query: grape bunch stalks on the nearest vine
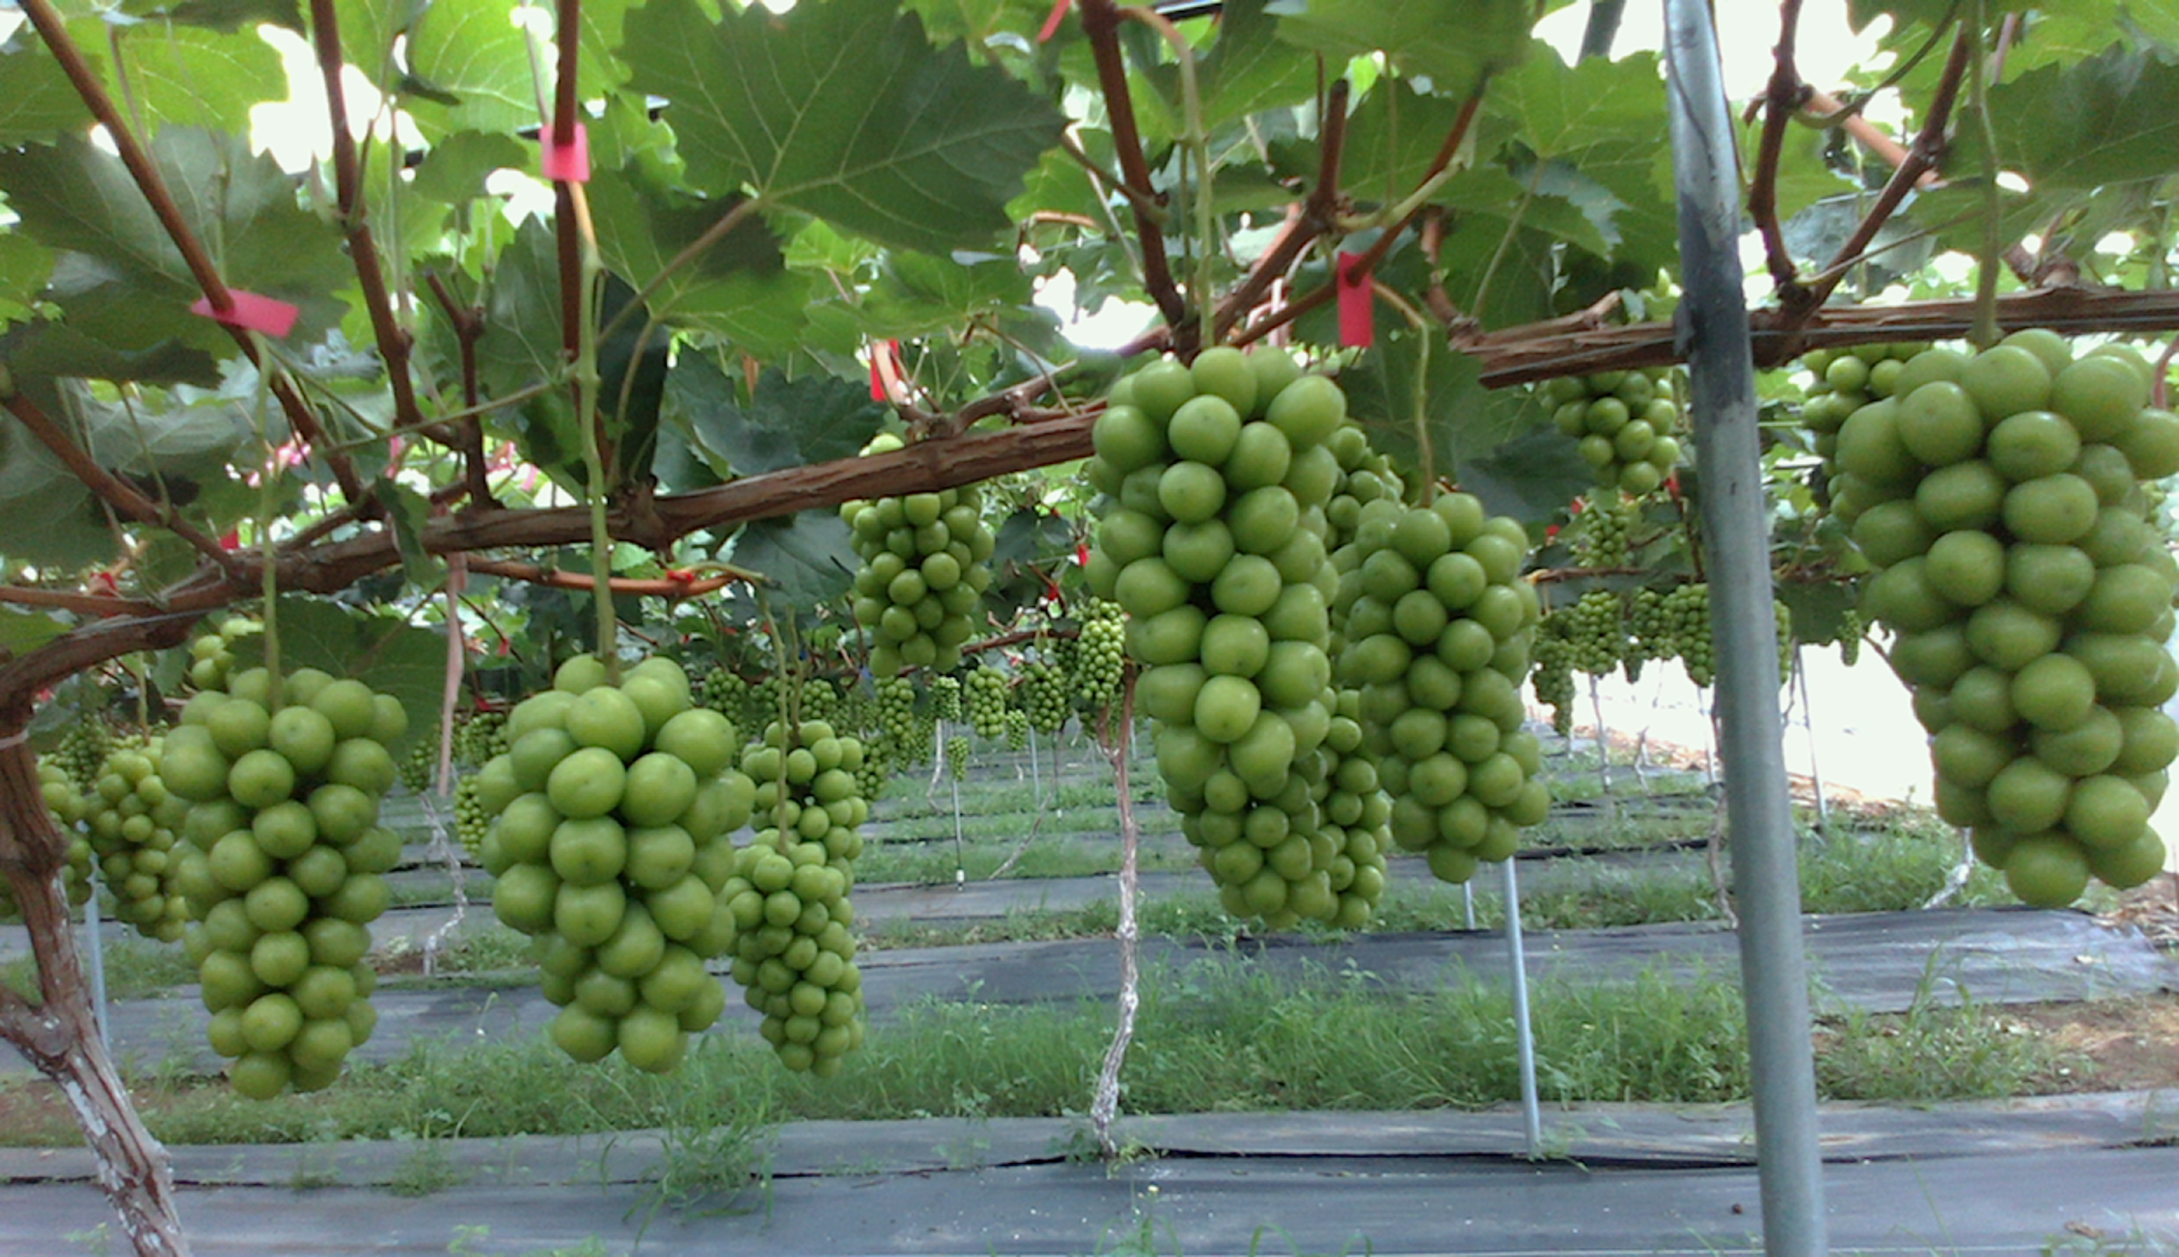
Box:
[244,328,279,714]
[566,180,620,683]
[1961,5,2003,351]
[1114,2,1213,351]
[1371,279,1432,508]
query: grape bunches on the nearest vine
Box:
[1329,492,1550,883]
[1833,328,2177,908]
[1081,344,1348,791]
[161,667,409,1100]
[478,655,758,1072]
